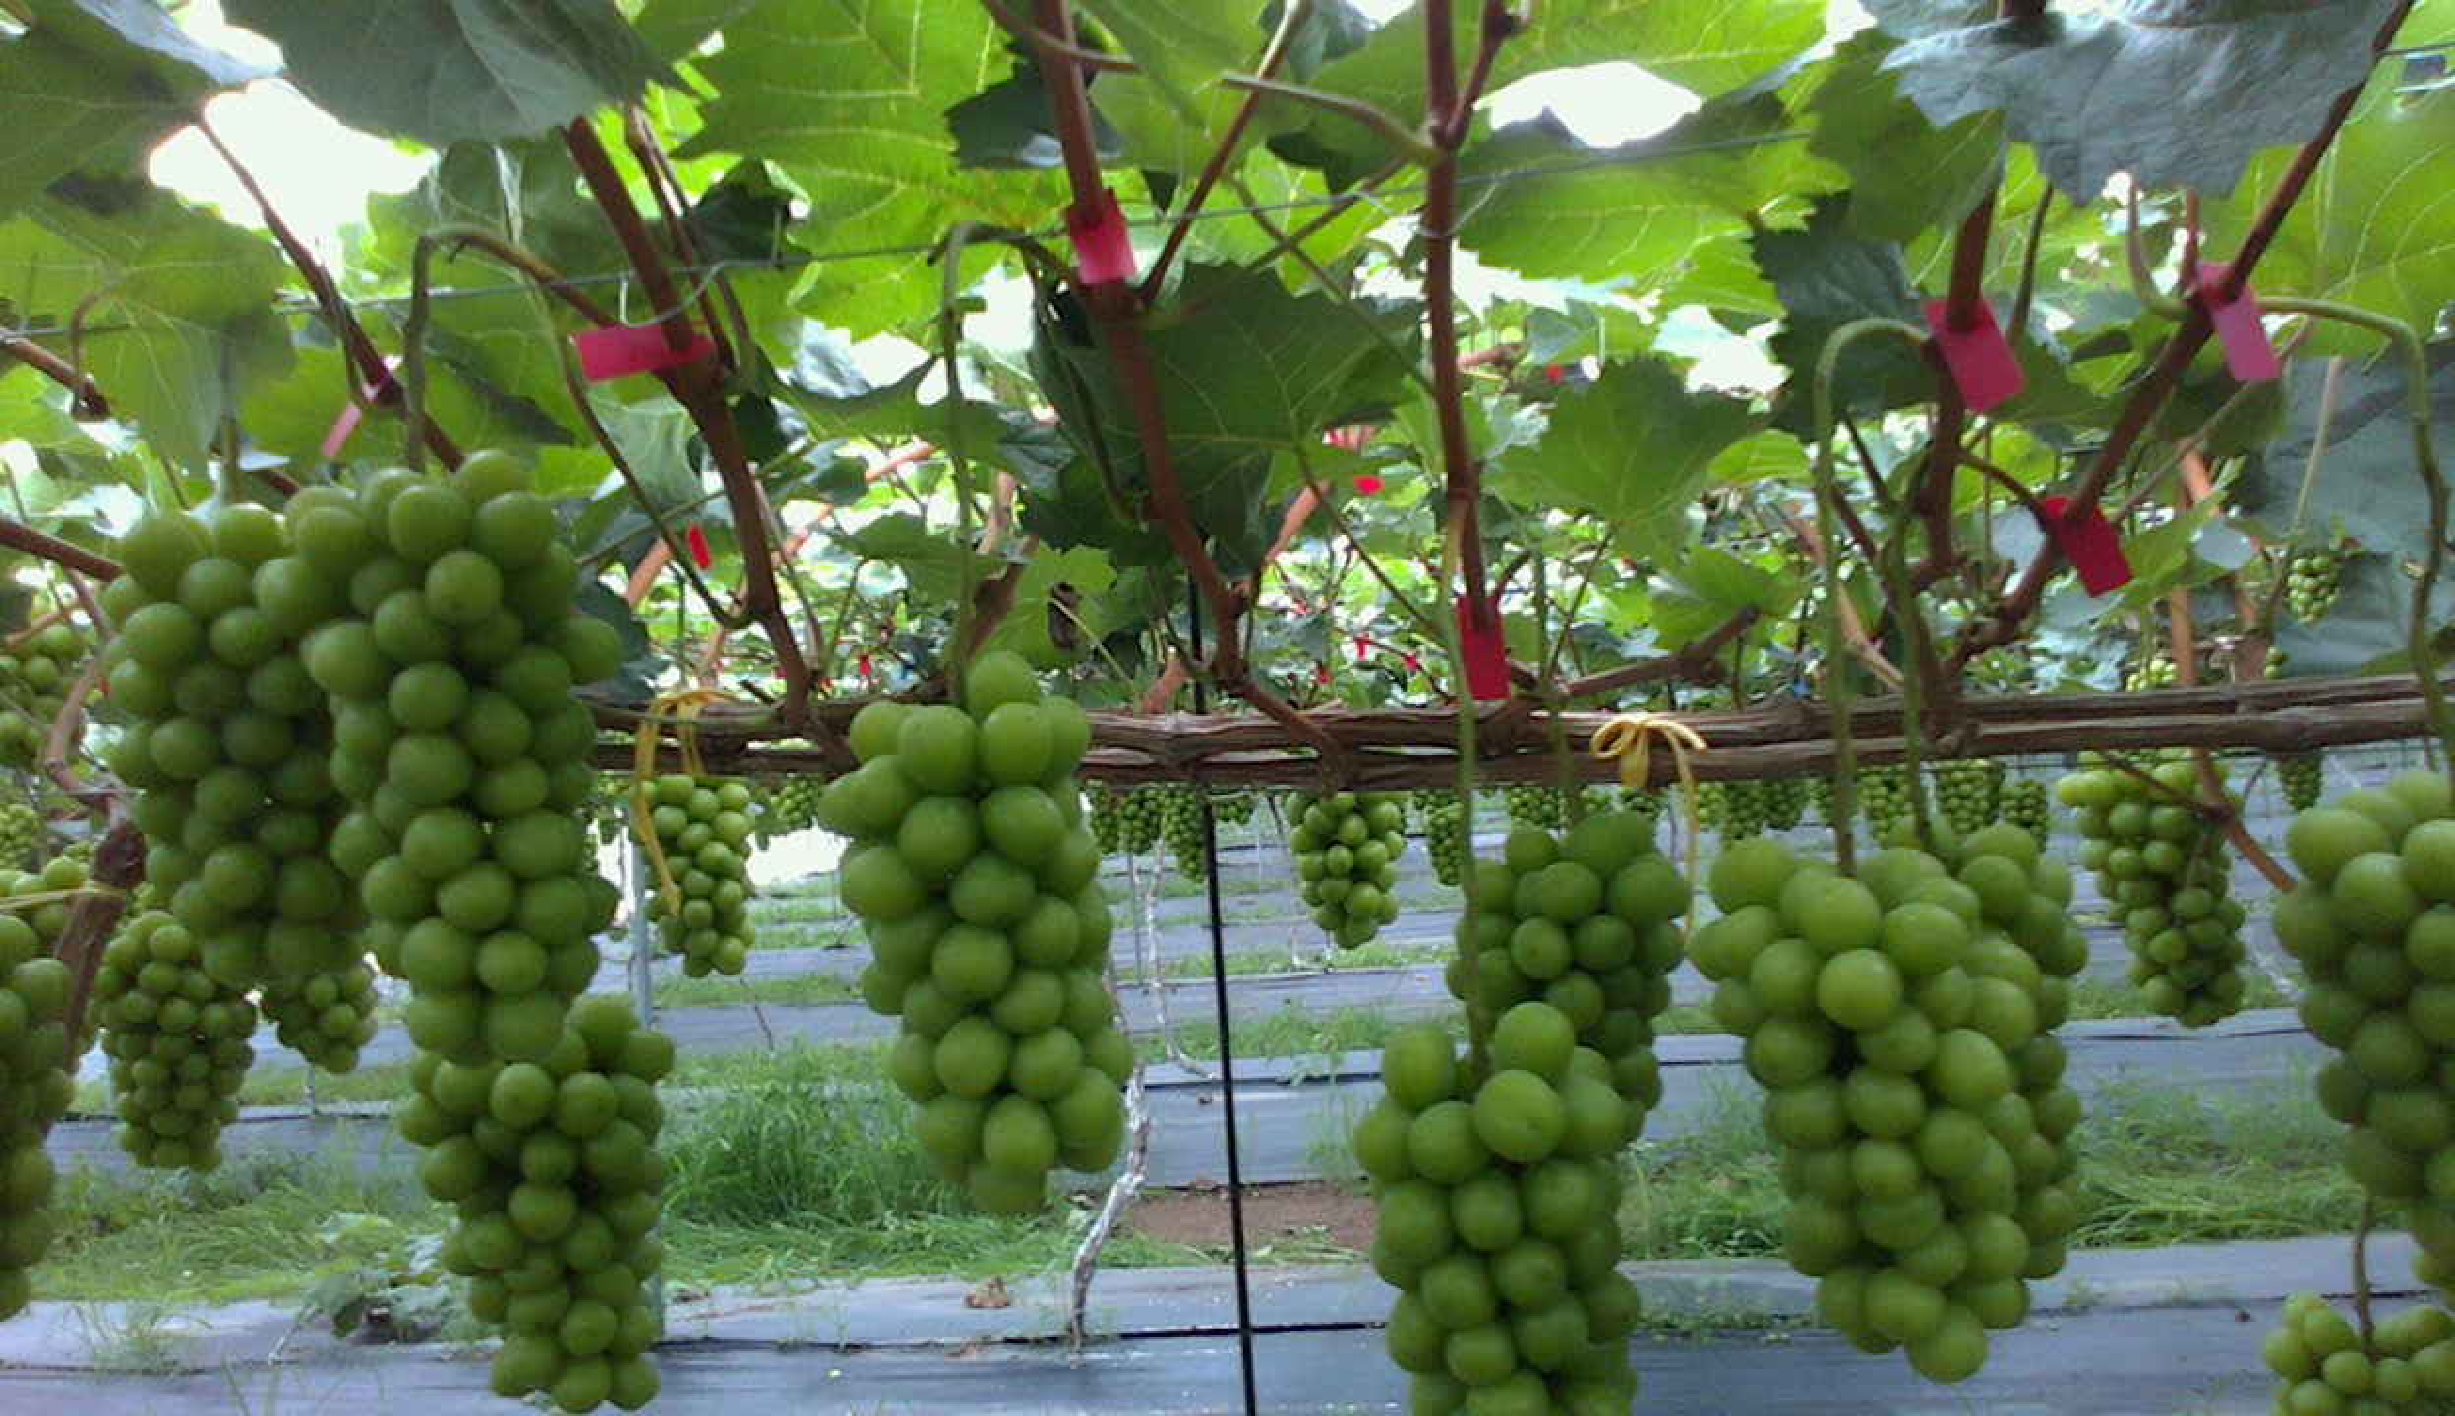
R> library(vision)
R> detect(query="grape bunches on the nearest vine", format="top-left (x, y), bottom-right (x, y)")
top-left (1479, 808), bottom-right (1690, 1147)
top-left (98, 501), bottom-right (366, 989)
top-left (1692, 824), bottom-right (2085, 1383)
top-left (252, 448), bottom-right (628, 1058)
top-left (1355, 1001), bottom-right (1639, 1414)
top-left (2272, 773), bottom-right (2453, 1286)
top-left (818, 649), bottom-right (1135, 1215)
top-left (399, 997), bottom-right (677, 1414)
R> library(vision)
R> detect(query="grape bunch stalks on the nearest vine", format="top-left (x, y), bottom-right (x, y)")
top-left (2256, 295), bottom-right (2453, 759)
top-left (403, 220), bottom-right (624, 468)
top-left (1493, 545), bottom-right (1586, 824)
top-left (928, 222), bottom-right (1076, 706)
top-left (1814, 317), bottom-right (1930, 879)
top-left (220, 419), bottom-right (244, 507)
top-left (1436, 496), bottom-right (1487, 1078)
